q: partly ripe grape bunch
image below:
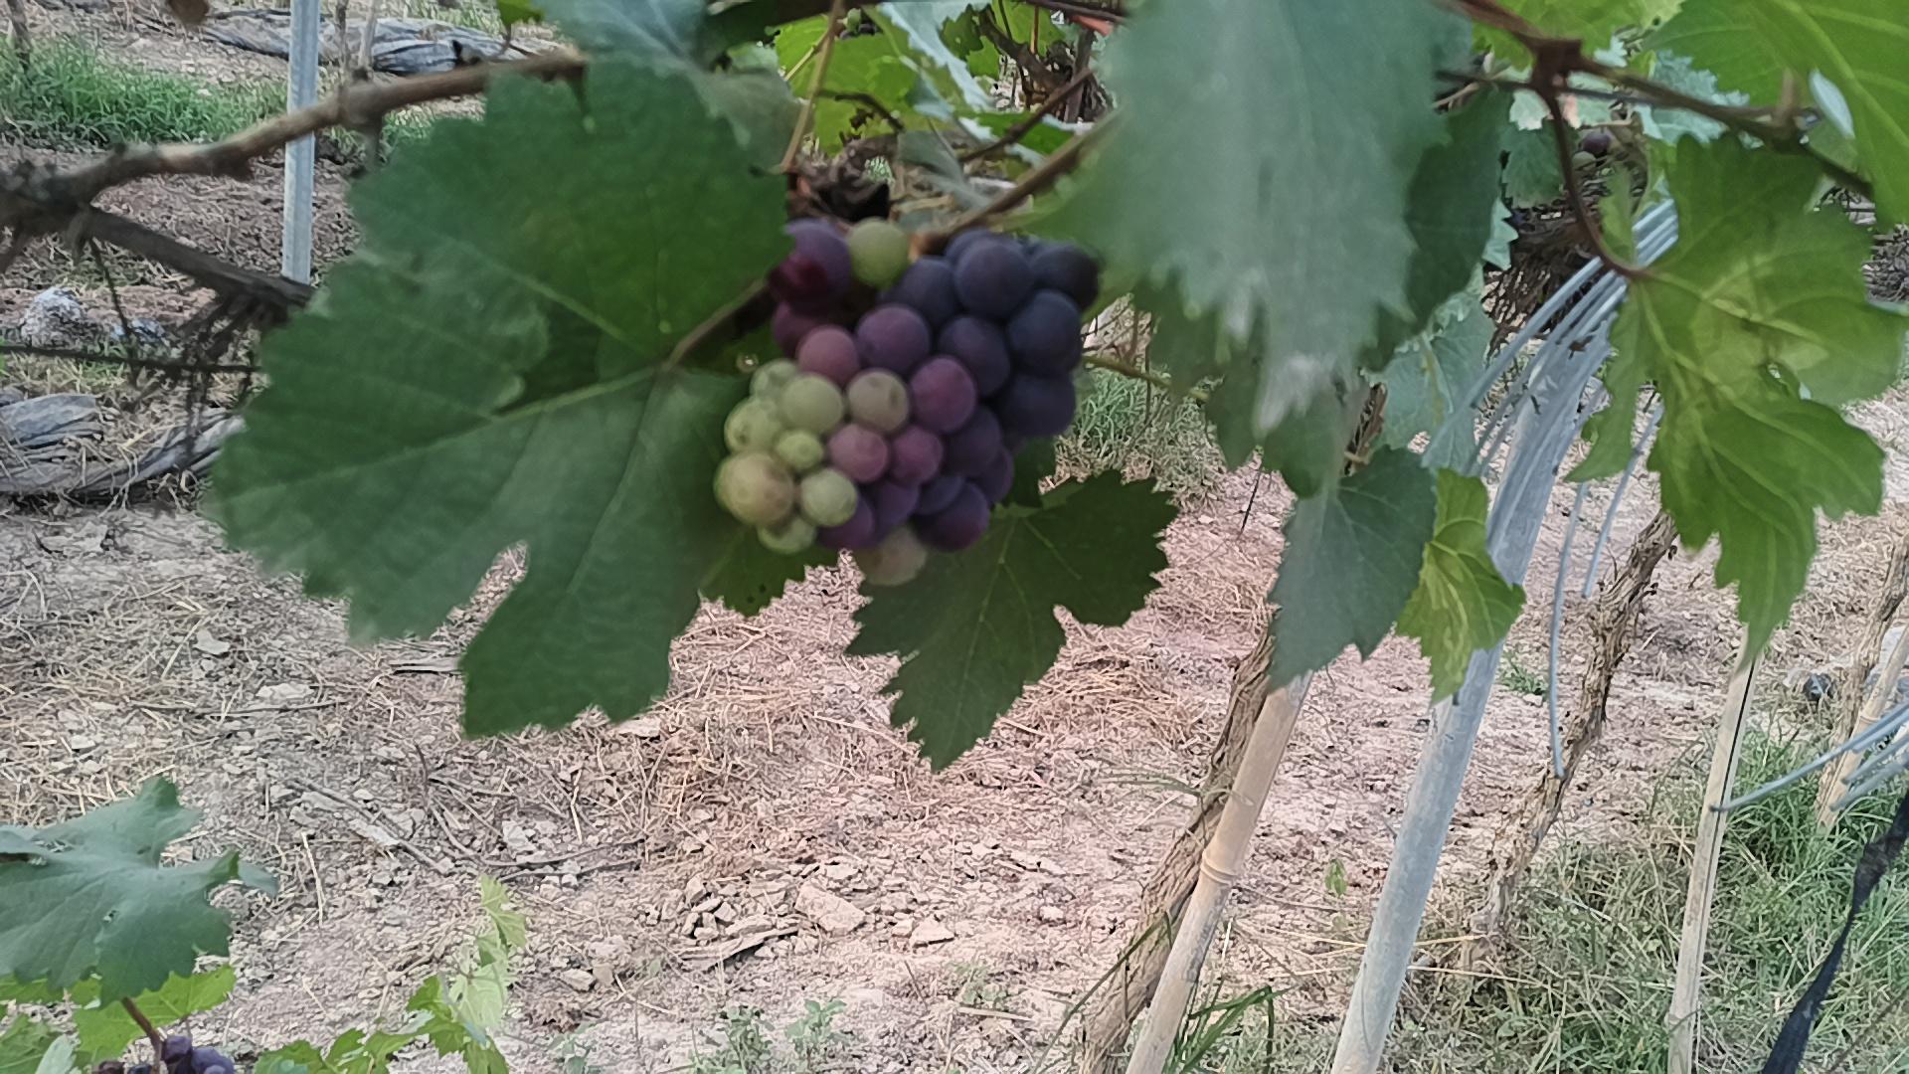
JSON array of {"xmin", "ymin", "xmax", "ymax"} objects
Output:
[{"xmin": 715, "ymin": 219, "xmax": 1098, "ymax": 585}]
